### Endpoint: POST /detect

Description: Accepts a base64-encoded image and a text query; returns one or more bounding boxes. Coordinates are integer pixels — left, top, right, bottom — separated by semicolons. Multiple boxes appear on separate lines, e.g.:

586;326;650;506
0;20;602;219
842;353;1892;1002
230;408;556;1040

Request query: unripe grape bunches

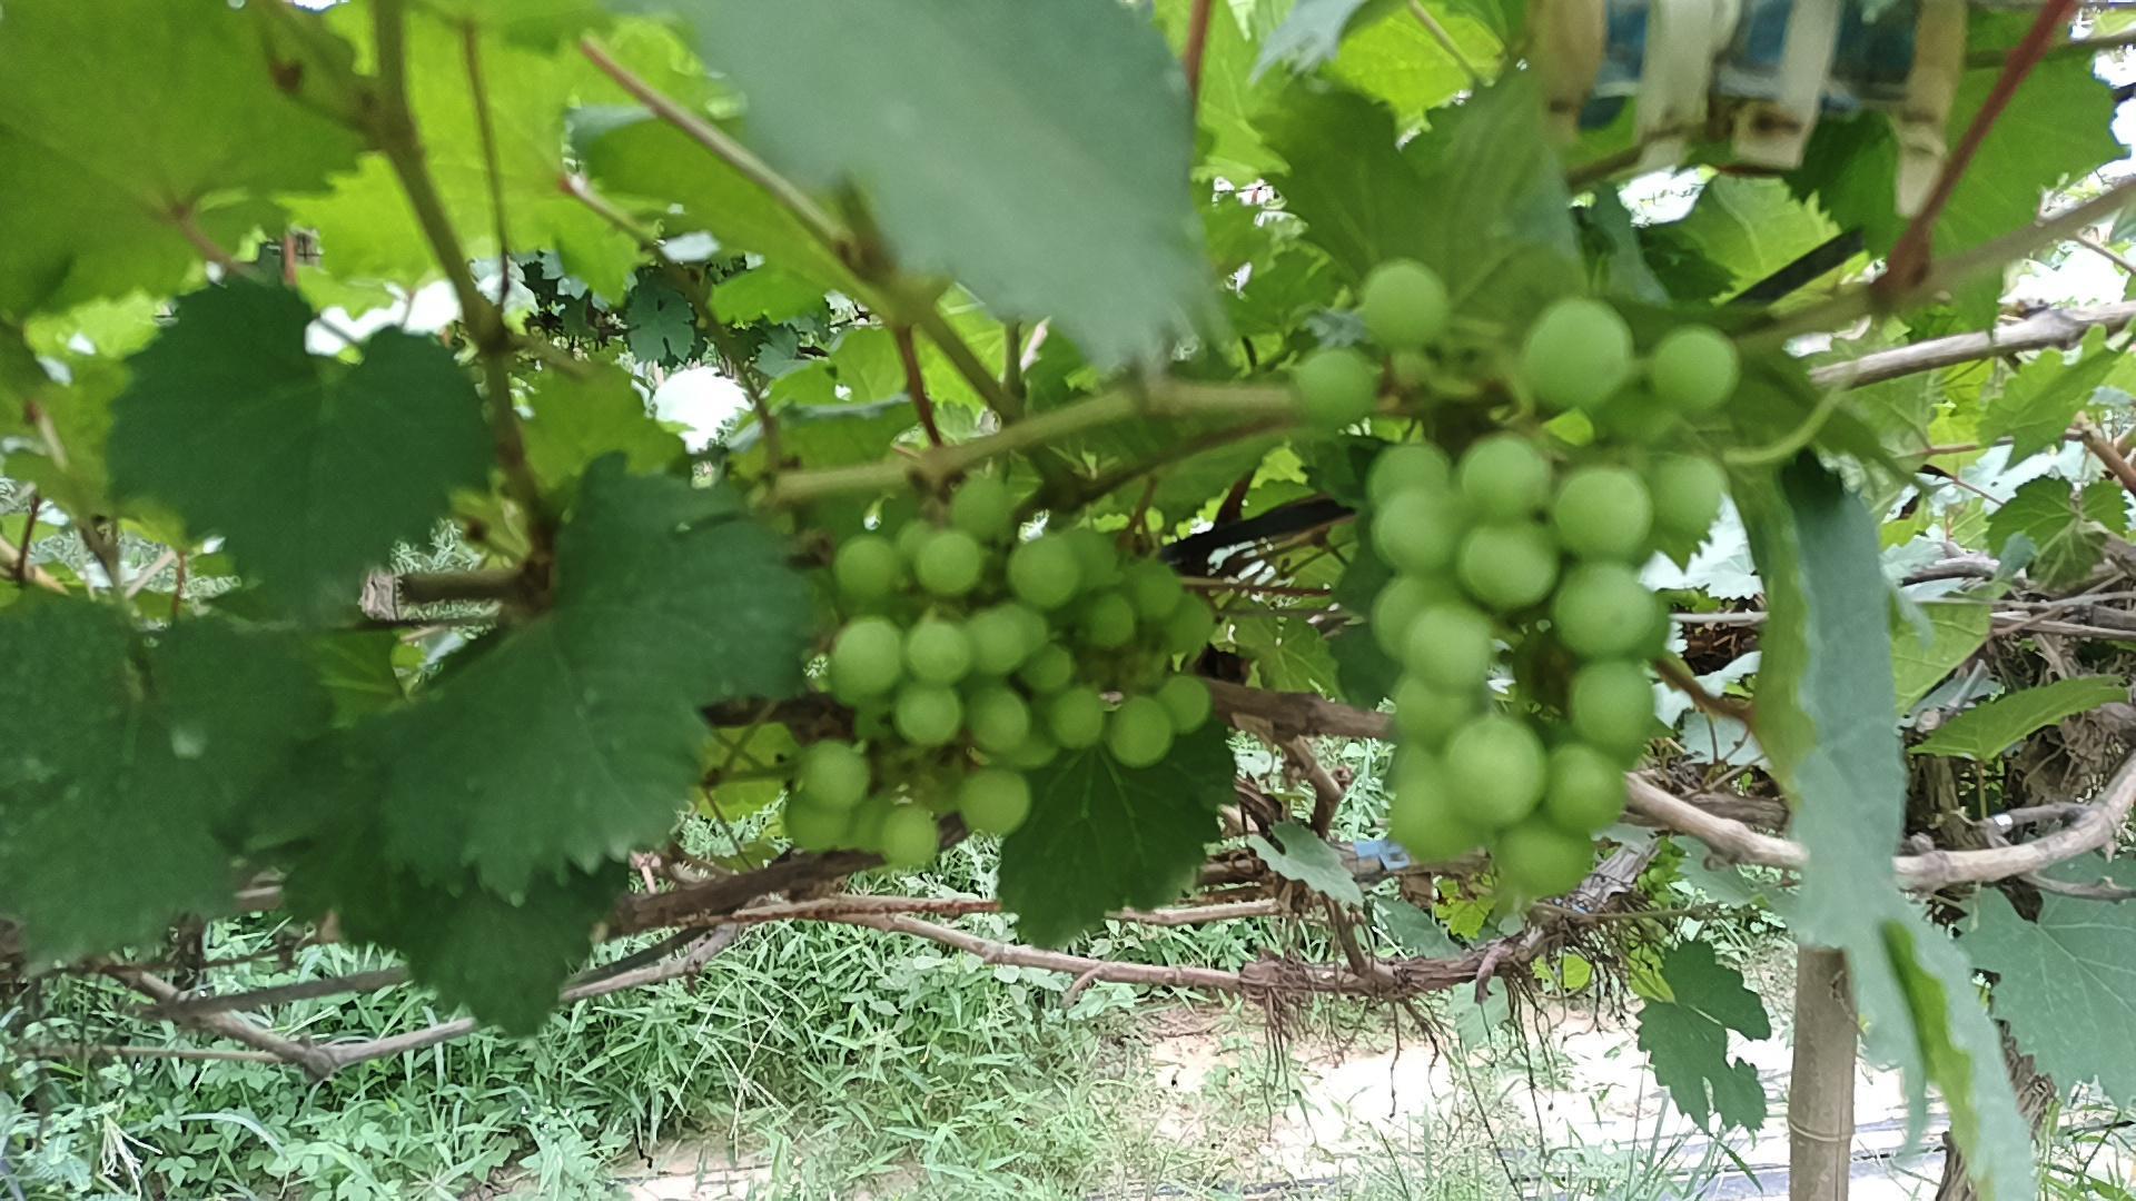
788;478;1214;866
1297;257;1742;900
